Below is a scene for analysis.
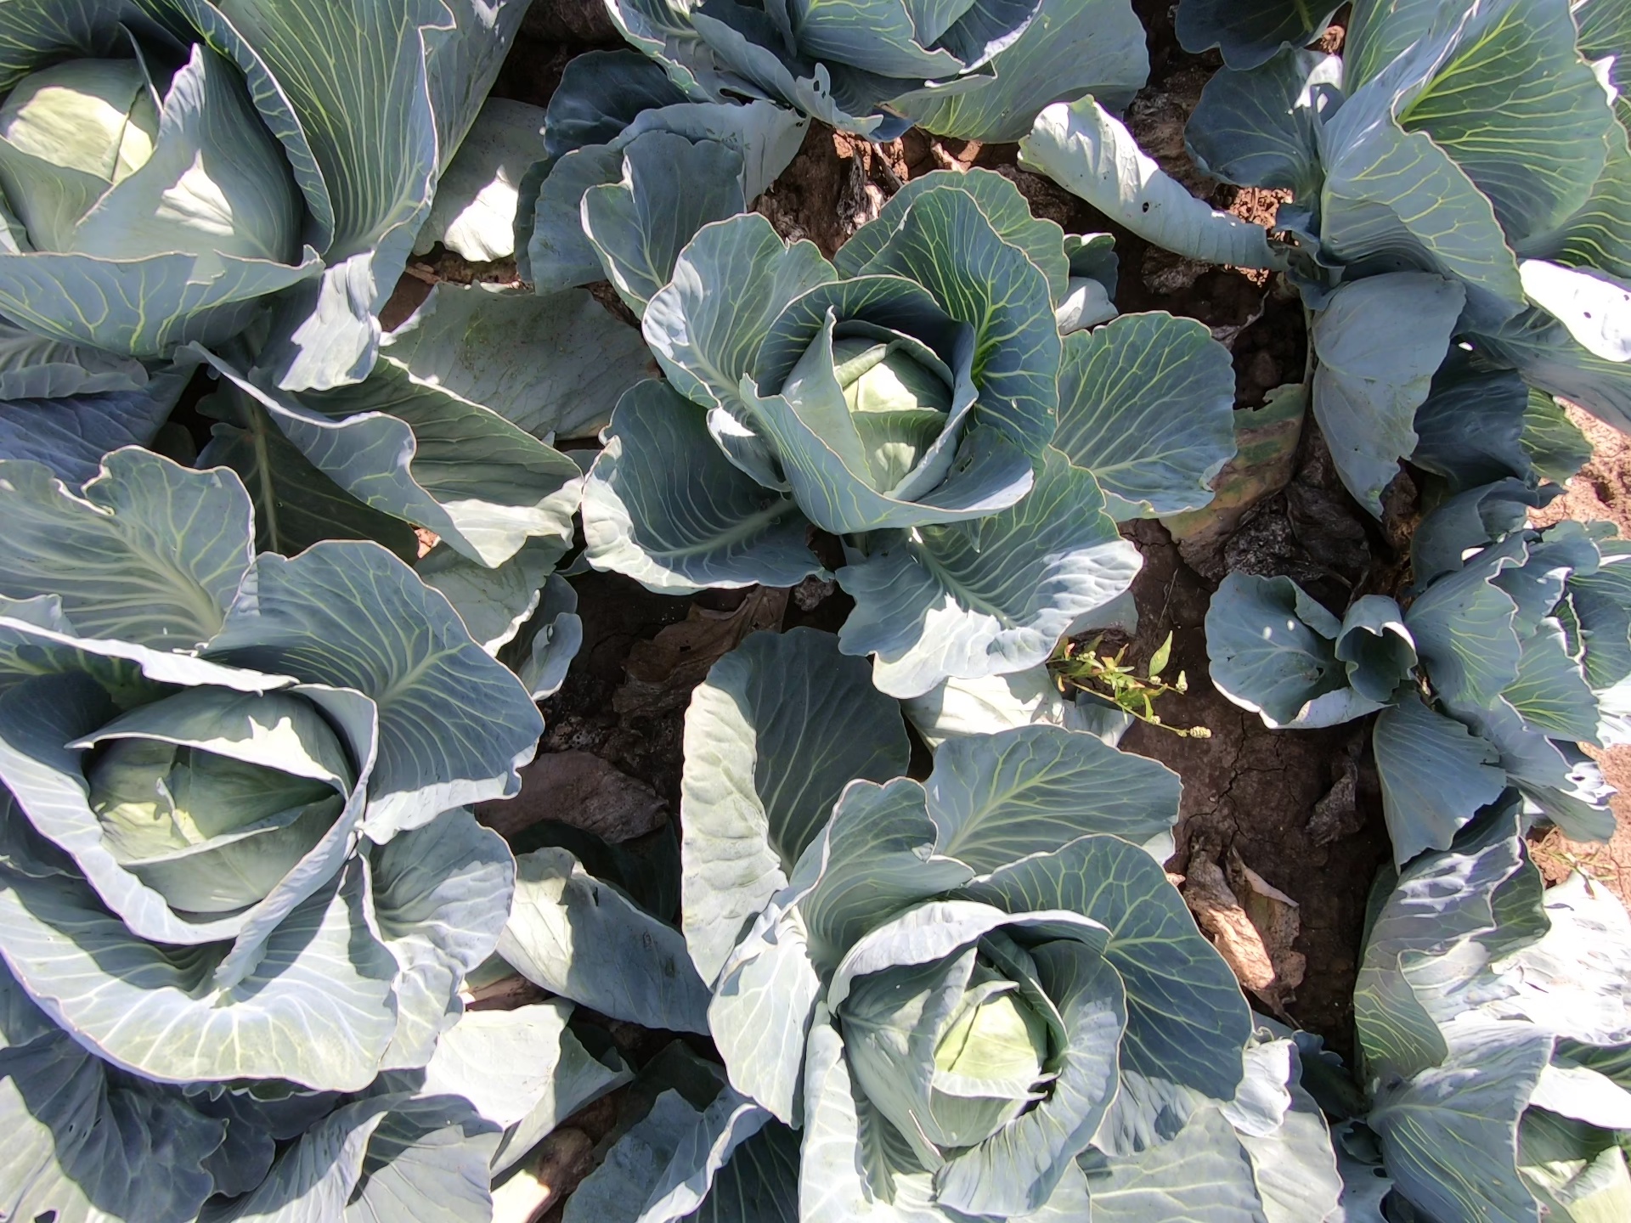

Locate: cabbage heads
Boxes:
[76,690,344,913]
[1446,1078,1628,1220]
[8,58,301,324]
[783,335,962,507]
[848,948,1047,1141]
